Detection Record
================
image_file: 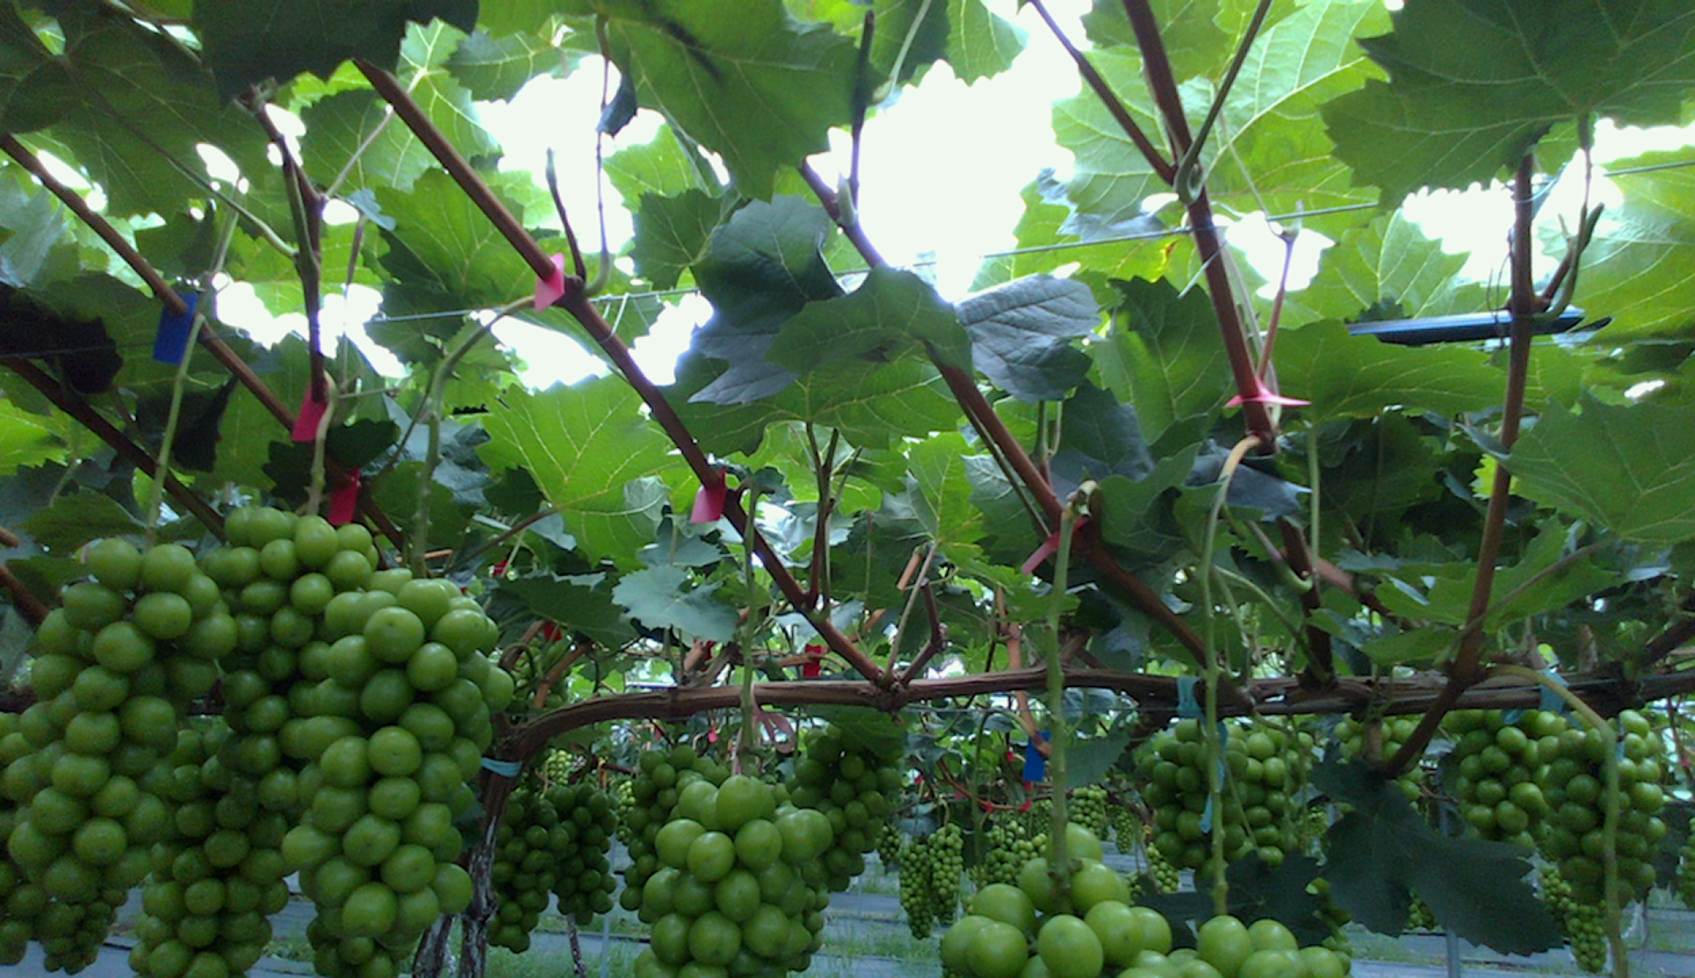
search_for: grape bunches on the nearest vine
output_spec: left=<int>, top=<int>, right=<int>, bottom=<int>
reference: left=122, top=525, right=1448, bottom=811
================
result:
left=940, top=820, right=1172, bottom=977
left=196, top=504, right=378, bottom=811
left=274, top=568, right=513, bottom=949
left=633, top=776, right=837, bottom=977
left=129, top=727, right=289, bottom=977
left=1, top=538, right=236, bottom=902
left=1165, top=916, right=1346, bottom=977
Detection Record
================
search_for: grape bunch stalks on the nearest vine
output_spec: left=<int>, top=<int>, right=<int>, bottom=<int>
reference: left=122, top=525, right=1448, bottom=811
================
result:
left=1044, top=479, right=1100, bottom=917
left=136, top=315, right=205, bottom=594
left=733, top=477, right=759, bottom=778
left=412, top=296, right=535, bottom=580
left=307, top=374, right=338, bottom=516
left=1197, top=435, right=1260, bottom=918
